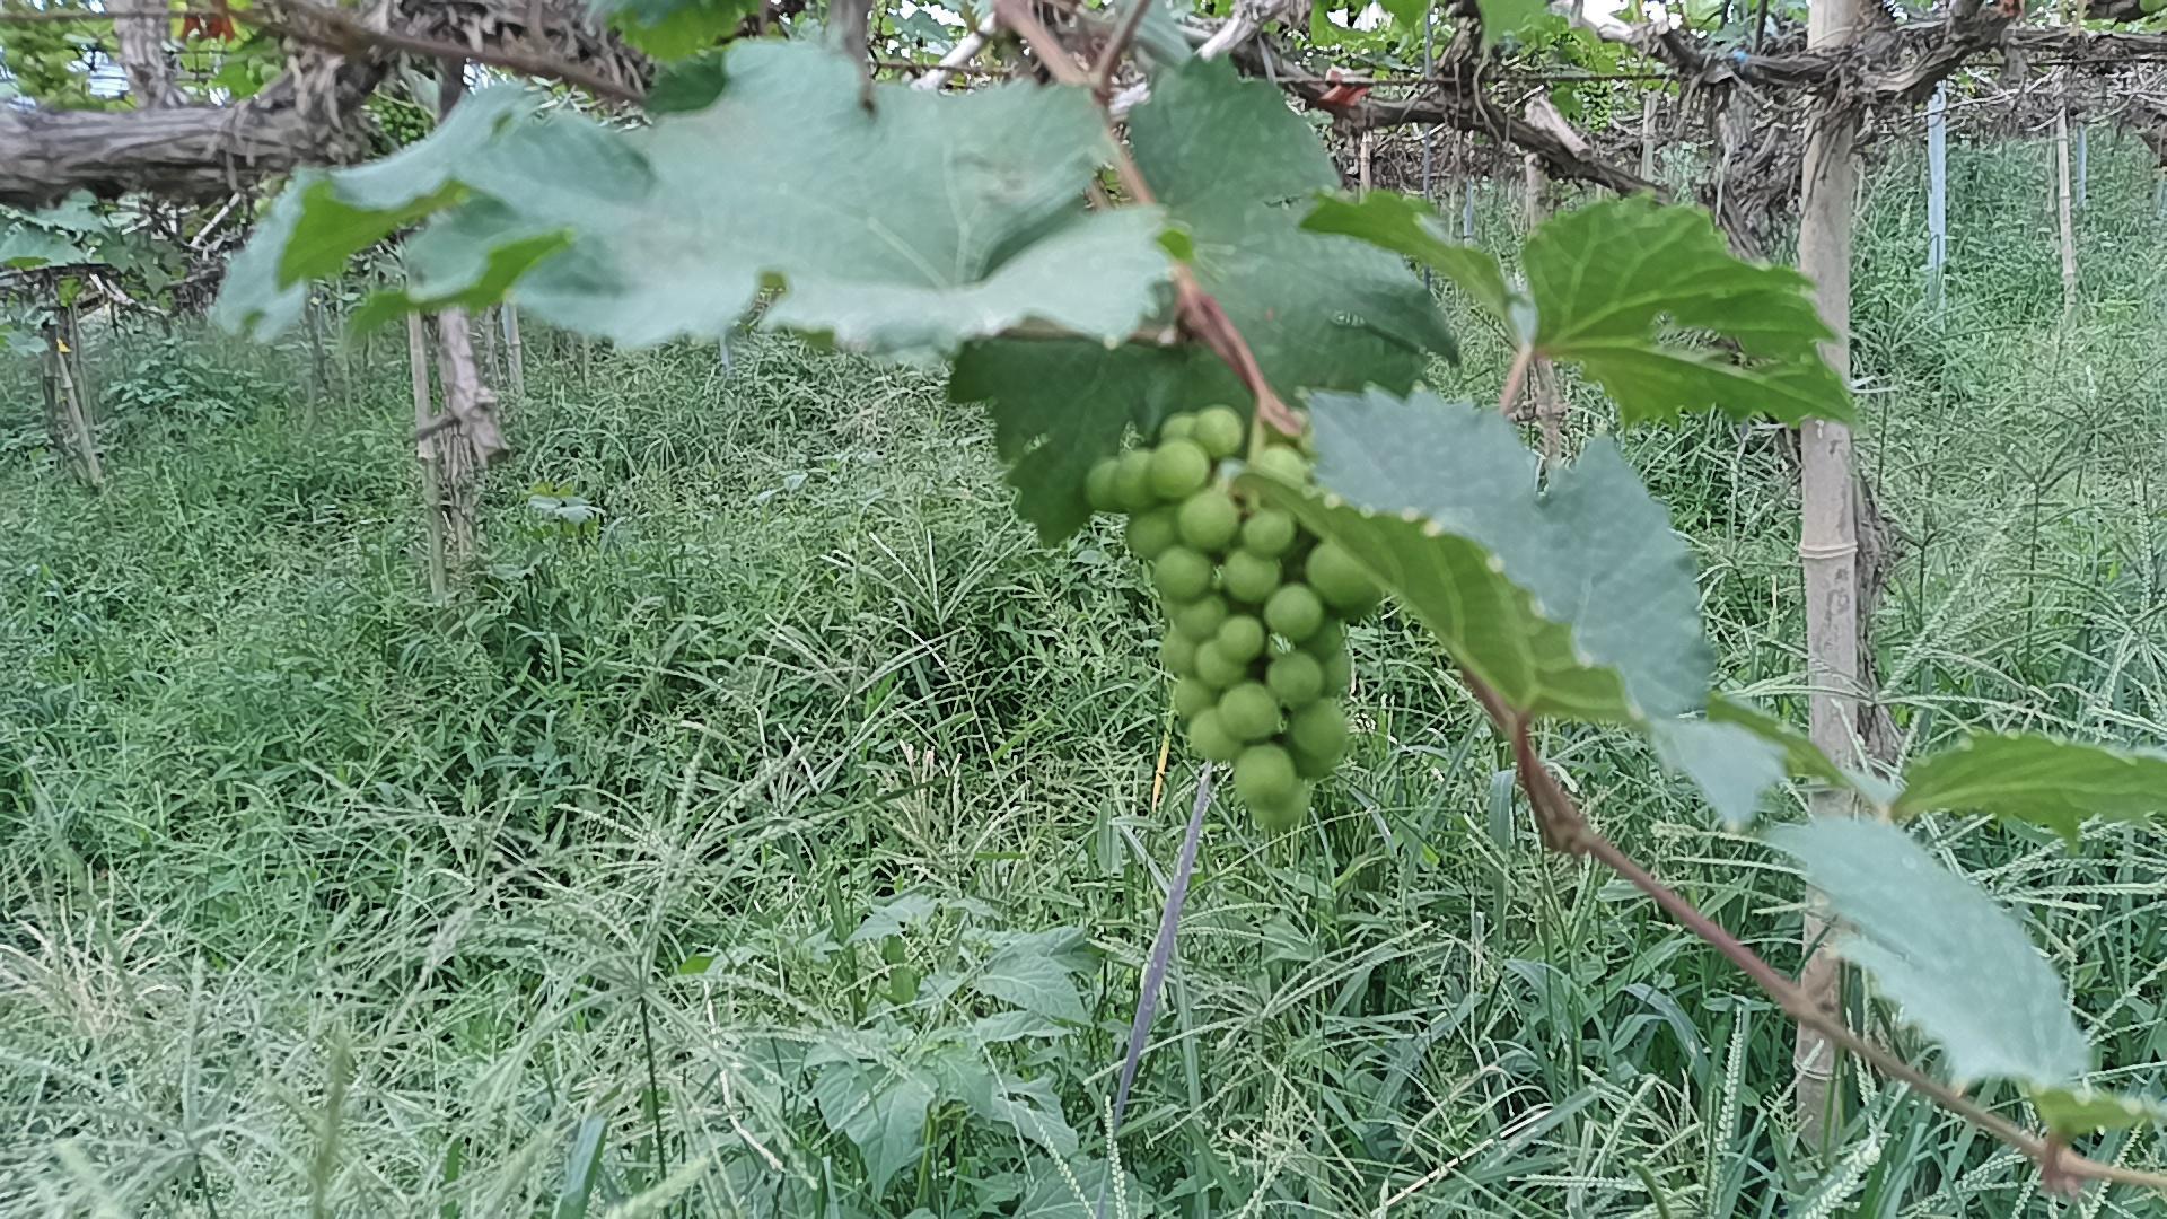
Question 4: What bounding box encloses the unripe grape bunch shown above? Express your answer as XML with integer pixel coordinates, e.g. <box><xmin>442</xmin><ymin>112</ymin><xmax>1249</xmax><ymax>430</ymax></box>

<box><xmin>1086</xmin><ymin>406</ymin><xmax>1384</xmax><ymax>830</ymax></box>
